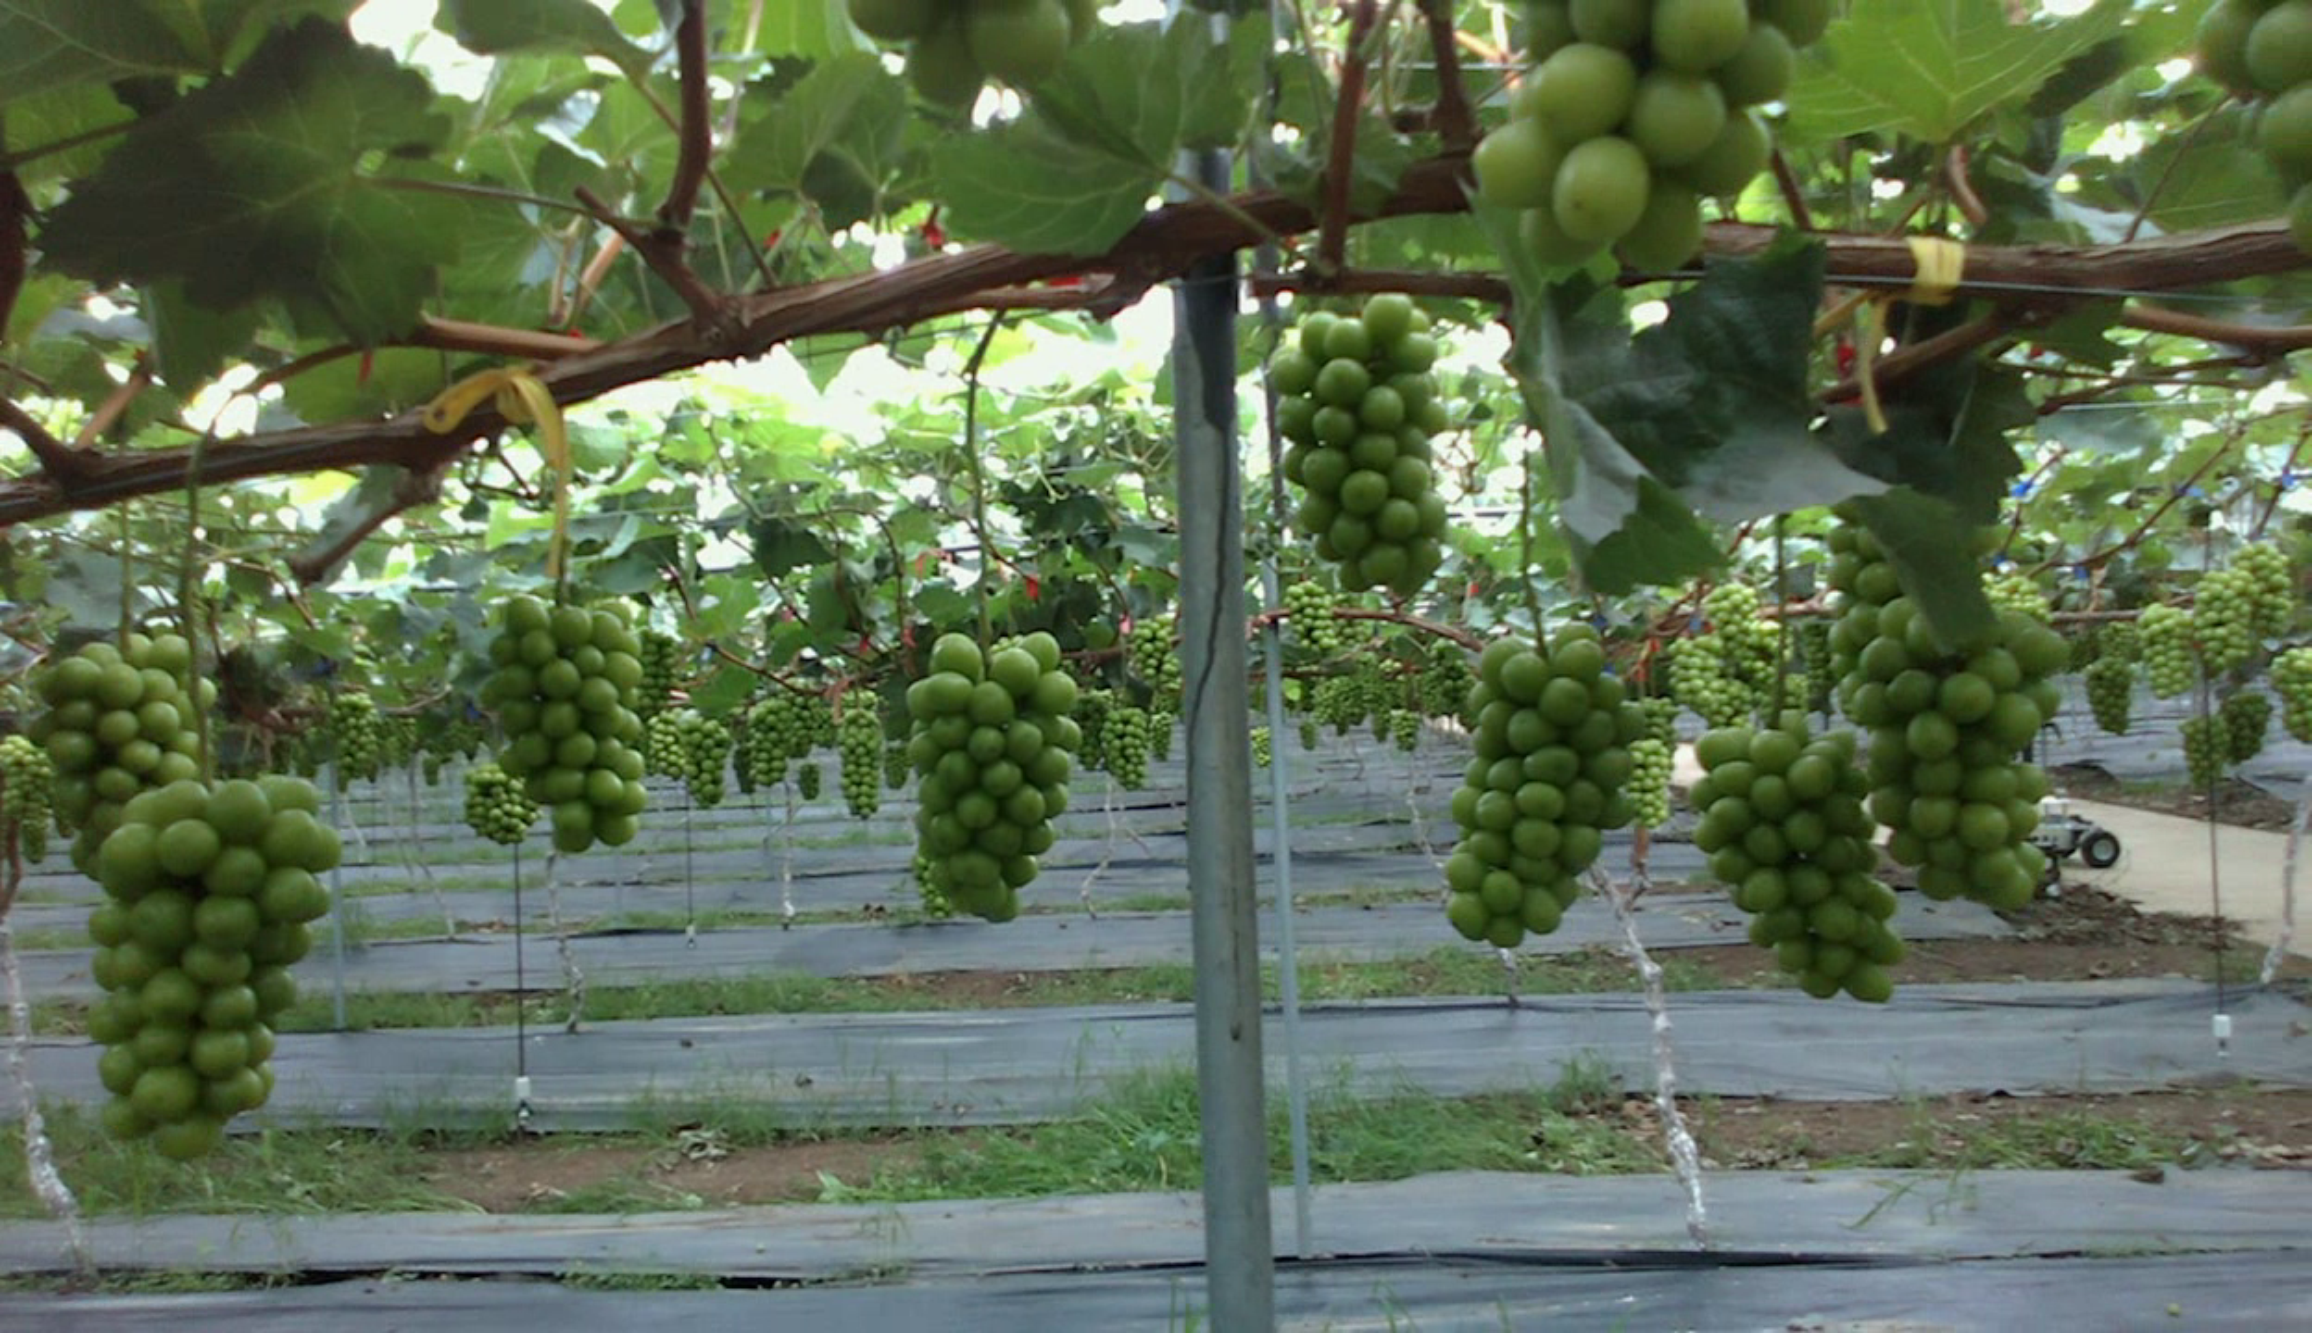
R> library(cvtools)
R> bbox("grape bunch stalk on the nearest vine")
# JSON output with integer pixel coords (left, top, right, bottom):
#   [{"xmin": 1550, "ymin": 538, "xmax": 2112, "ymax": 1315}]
[{"xmin": 180, "ymin": 343, "xmax": 358, "ymax": 792}]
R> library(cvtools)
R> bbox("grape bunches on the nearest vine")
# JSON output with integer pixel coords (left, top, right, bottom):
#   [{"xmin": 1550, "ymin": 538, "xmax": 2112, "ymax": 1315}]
[
  {"xmin": 85, "ymin": 774, "xmax": 346, "ymax": 1163},
  {"xmin": 1475, "ymin": 0, "xmax": 1838, "ymax": 274},
  {"xmin": 2195, "ymin": 0, "xmax": 2308, "ymax": 254},
  {"xmin": 847, "ymin": 2, "xmax": 1091, "ymax": 106}
]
